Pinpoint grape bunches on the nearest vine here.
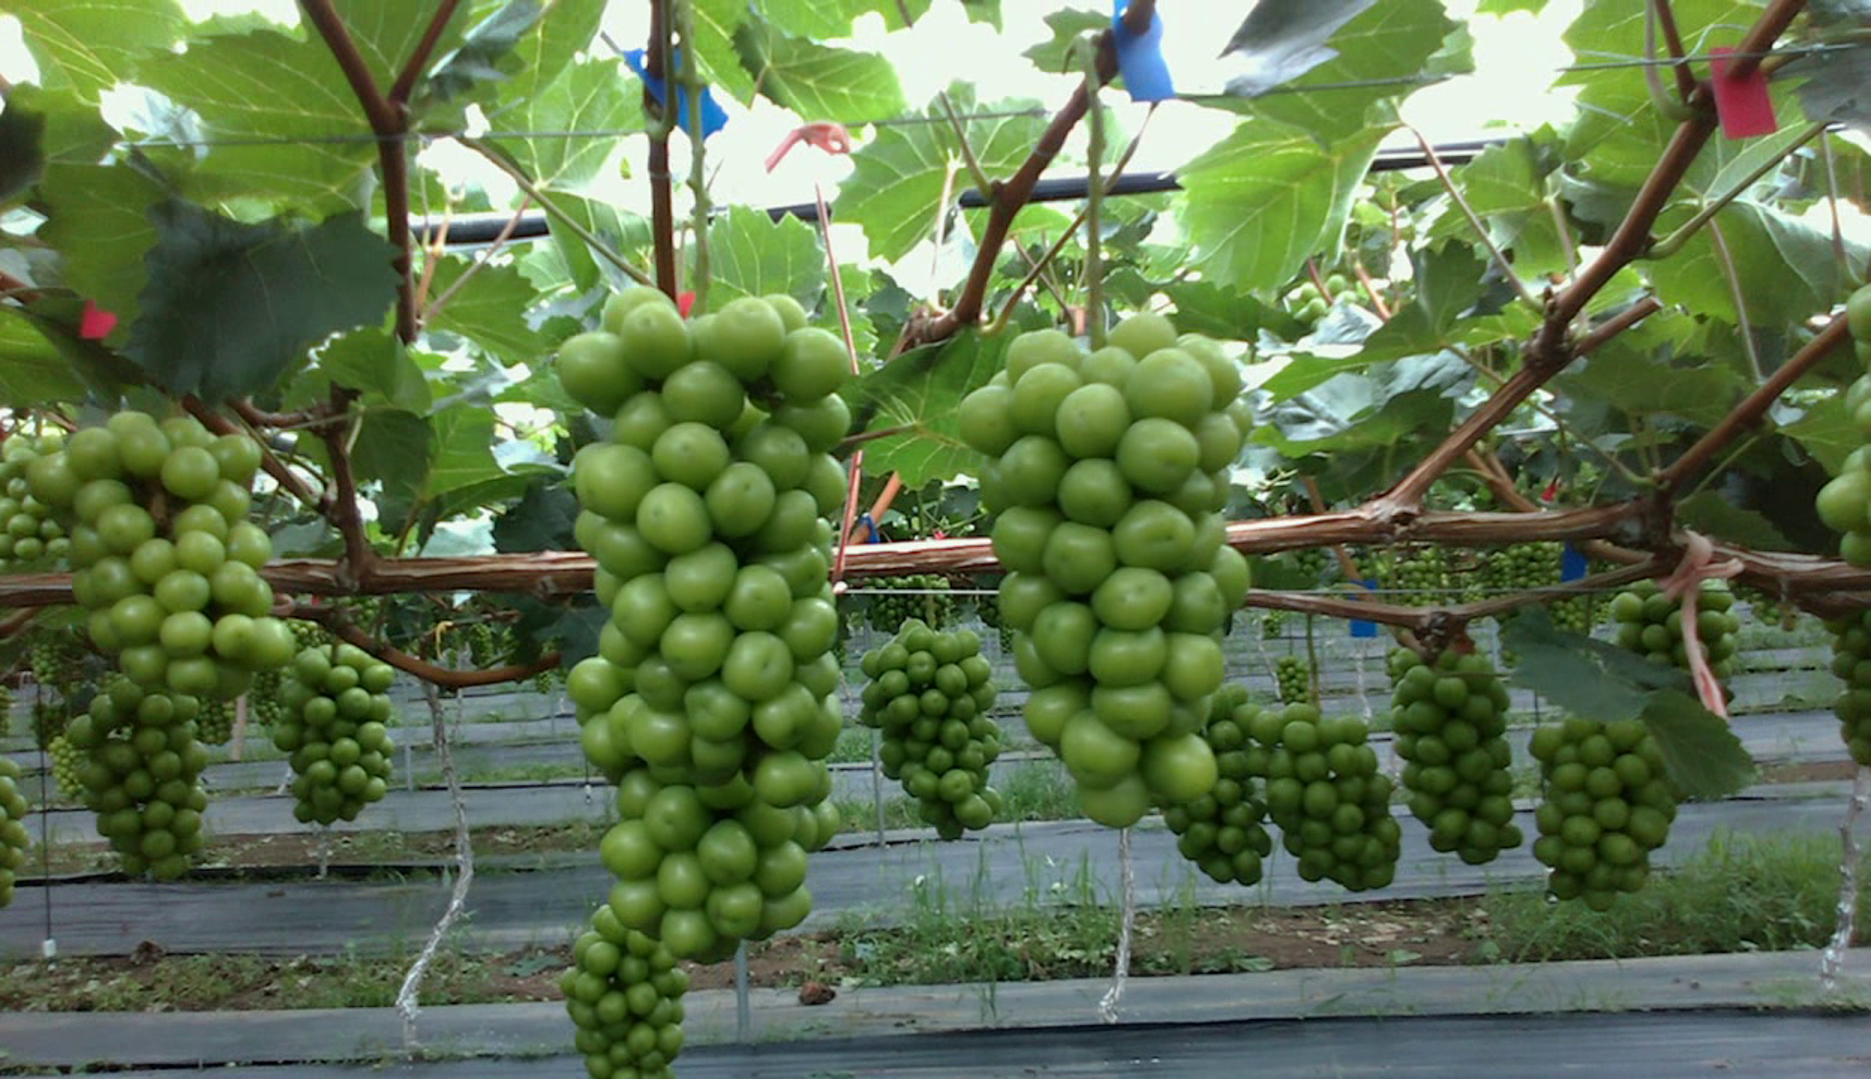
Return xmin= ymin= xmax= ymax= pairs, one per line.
xmin=556 ymin=285 xmax=852 ymax=809
xmin=565 ymin=656 xmax=813 ymax=965
xmin=24 ymin=411 xmax=295 ymax=703
xmin=958 ymin=312 xmax=1253 ymax=829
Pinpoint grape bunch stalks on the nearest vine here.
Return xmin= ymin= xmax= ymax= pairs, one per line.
xmin=672 ymin=1 xmax=714 ymax=316
xmin=1072 ymin=34 xmax=1106 ymax=352
xmin=163 ymin=387 xmax=184 ymax=417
